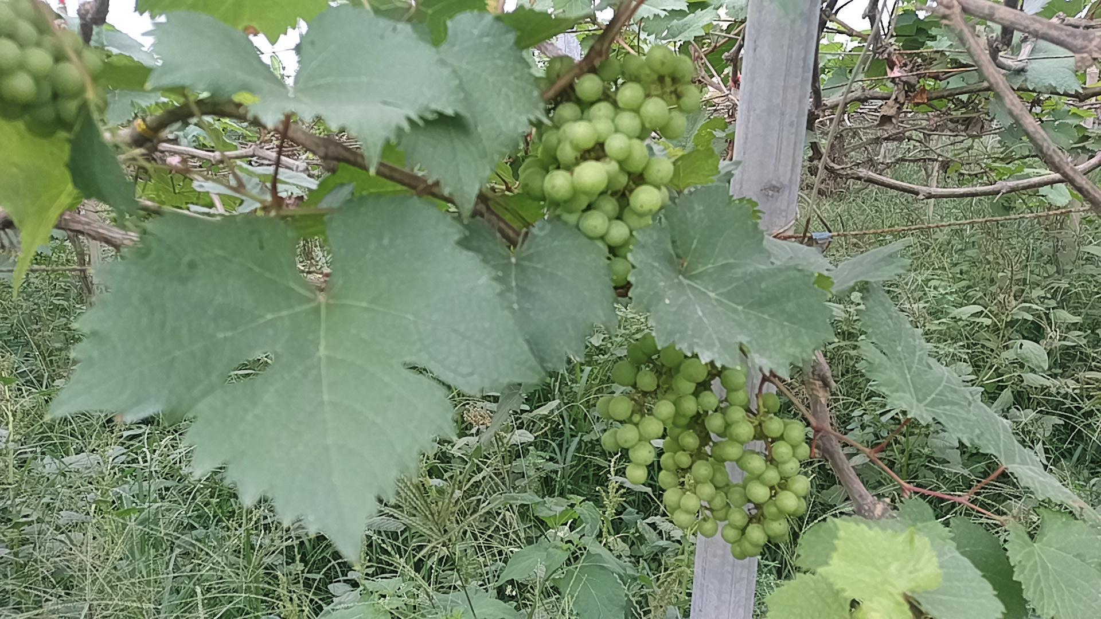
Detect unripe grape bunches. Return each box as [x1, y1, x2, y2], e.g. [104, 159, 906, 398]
[0, 1, 108, 140]
[595, 333, 810, 561]
[519, 46, 700, 286]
